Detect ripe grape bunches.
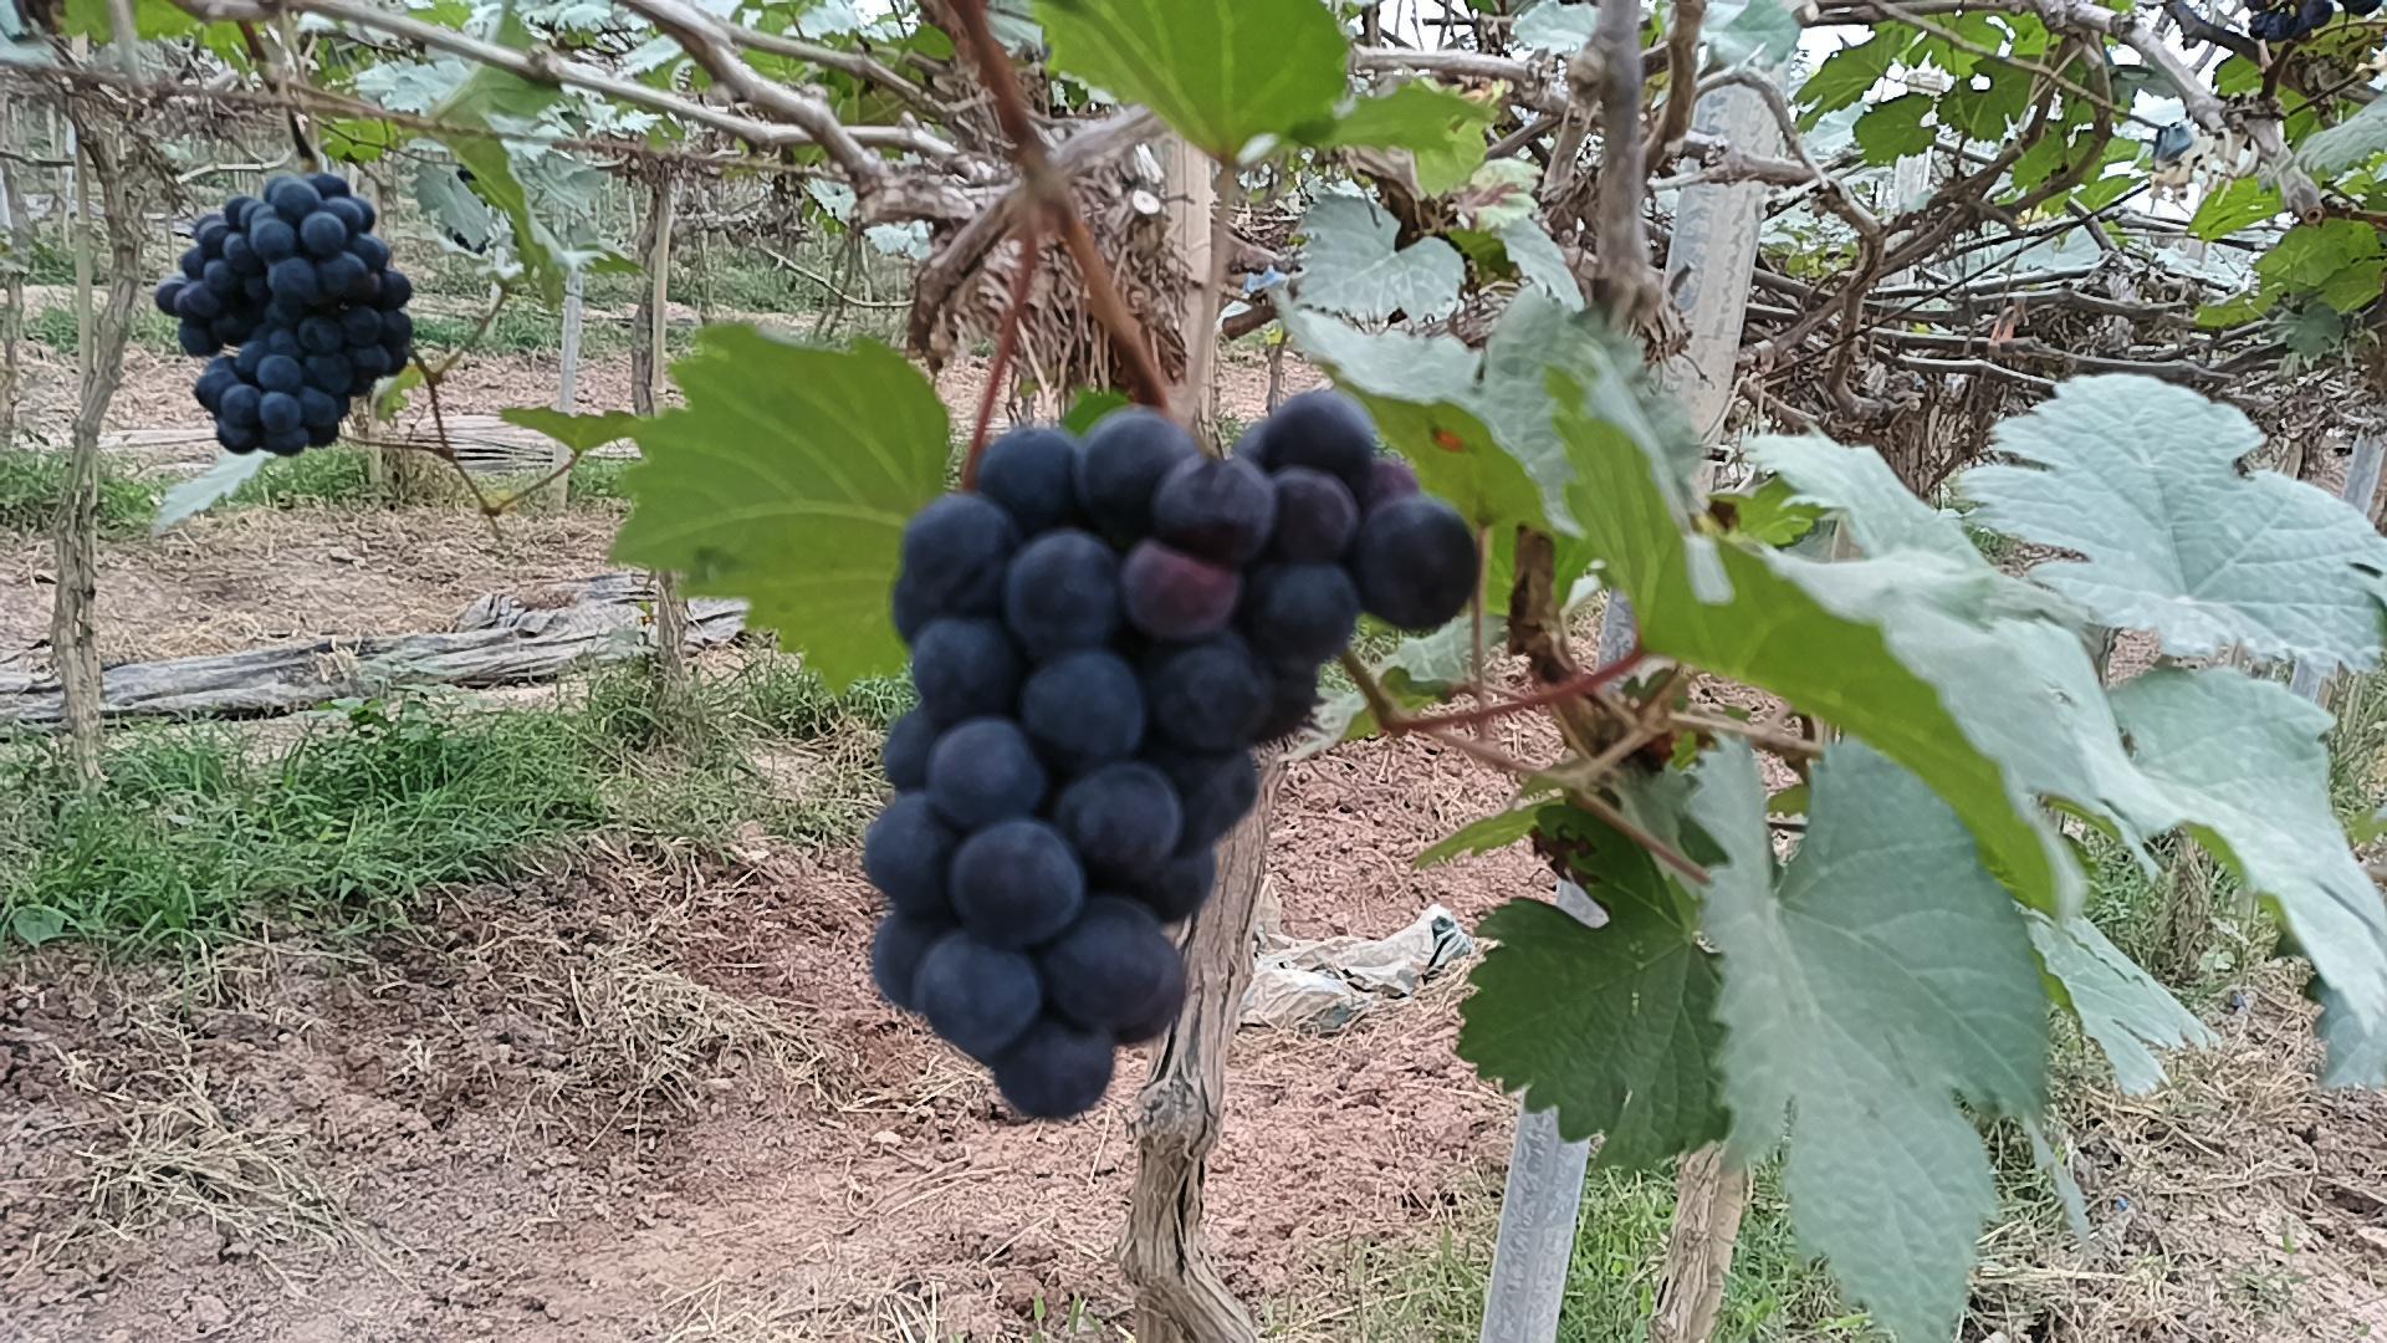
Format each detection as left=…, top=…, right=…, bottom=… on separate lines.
left=865, top=390, right=1477, bottom=1118
left=154, top=174, right=413, bottom=455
